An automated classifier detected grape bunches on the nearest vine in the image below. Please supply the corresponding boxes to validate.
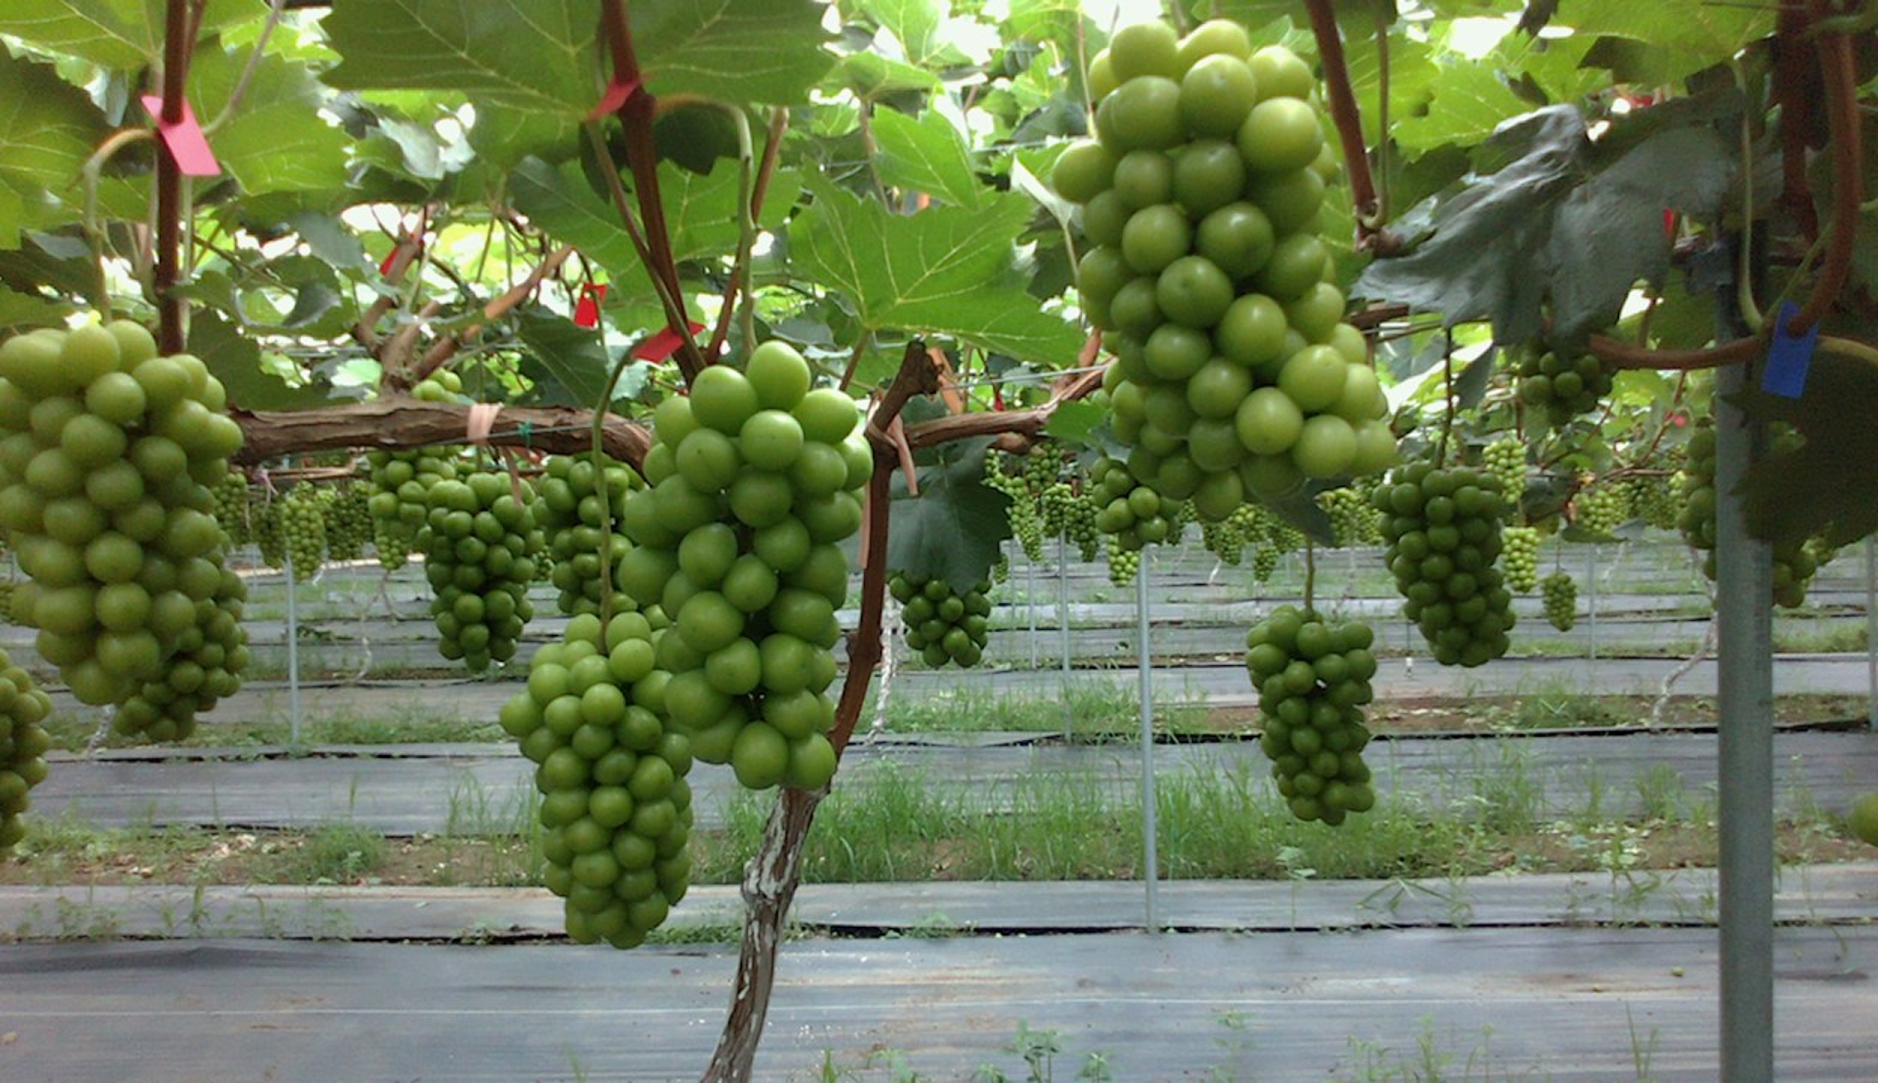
[497,611,695,951]
[1053,20,1395,504]
[2,323,242,710]
[618,340,876,791]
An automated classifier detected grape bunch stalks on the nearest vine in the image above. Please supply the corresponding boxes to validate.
[83,126,153,325]
[591,334,650,660]
[1166,3,1192,39]
[653,93,755,363]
